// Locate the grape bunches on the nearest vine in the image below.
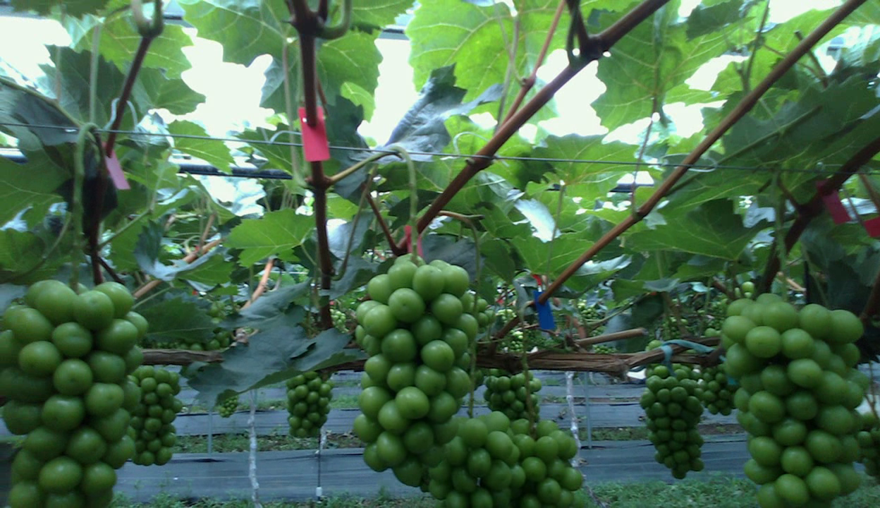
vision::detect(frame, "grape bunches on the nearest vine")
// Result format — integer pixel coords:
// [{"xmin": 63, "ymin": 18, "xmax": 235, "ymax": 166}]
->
[
  {"xmin": 429, "ymin": 411, "xmax": 525, "ymax": 507},
  {"xmin": 1, "ymin": 279, "xmax": 148, "ymax": 507},
  {"xmin": 353, "ymin": 253, "xmax": 478, "ymax": 487},
  {"xmin": 719, "ymin": 294, "xmax": 870, "ymax": 507},
  {"xmin": 510, "ymin": 418, "xmax": 587, "ymax": 507}
]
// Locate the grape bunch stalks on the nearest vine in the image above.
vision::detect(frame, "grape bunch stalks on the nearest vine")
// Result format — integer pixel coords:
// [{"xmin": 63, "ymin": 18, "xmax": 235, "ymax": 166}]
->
[
  {"xmin": 68, "ymin": 123, "xmax": 104, "ymax": 296},
  {"xmin": 518, "ymin": 299, "xmax": 535, "ymax": 438},
  {"xmin": 331, "ymin": 145, "xmax": 417, "ymax": 264}
]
